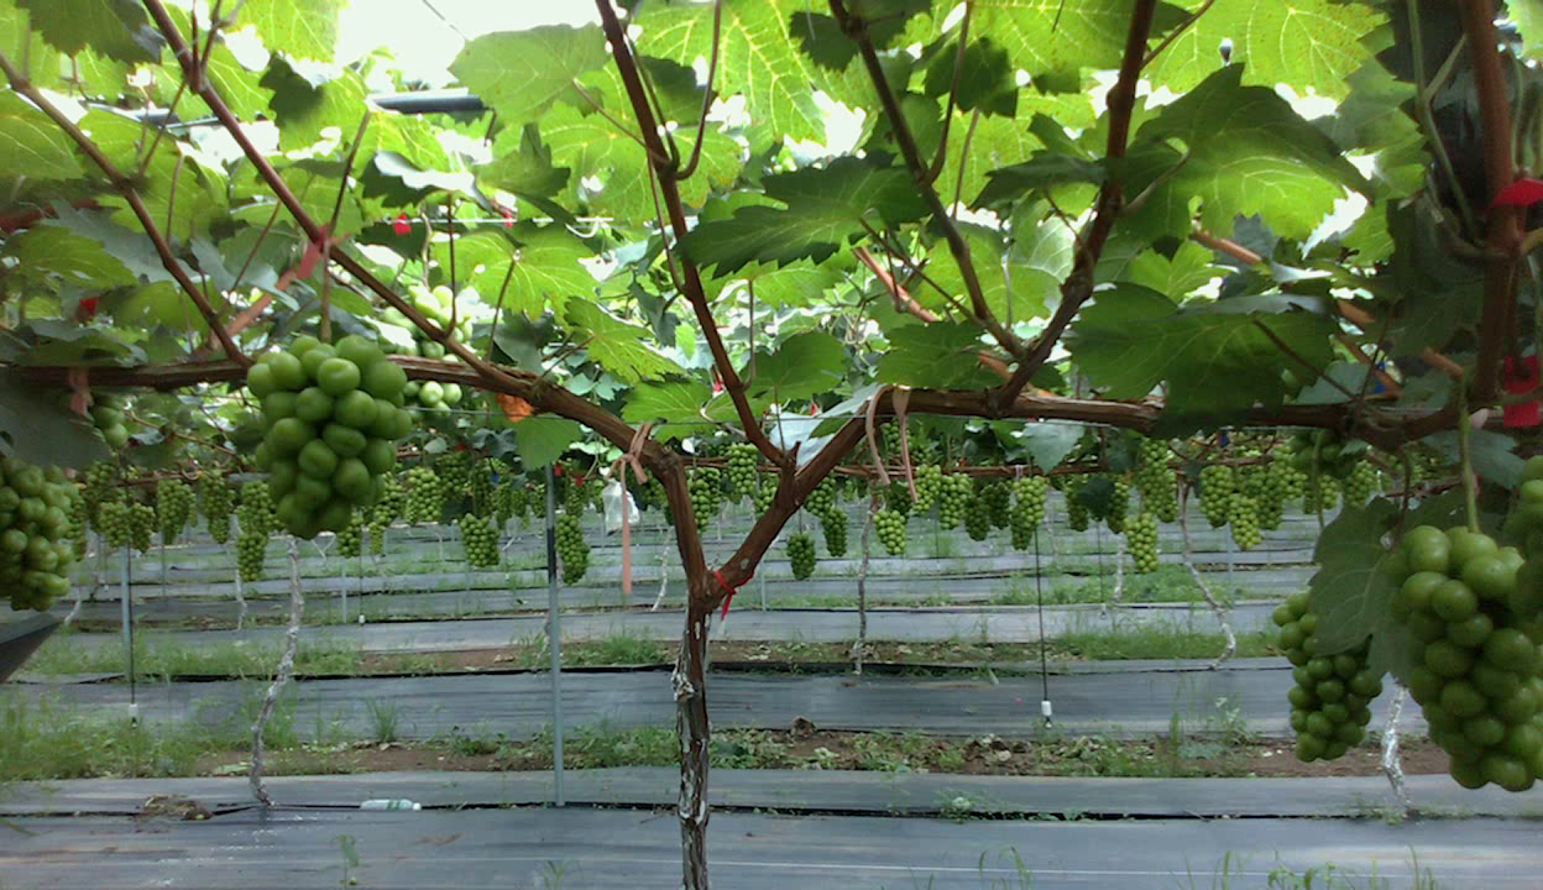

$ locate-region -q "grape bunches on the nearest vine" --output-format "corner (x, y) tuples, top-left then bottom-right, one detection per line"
(1271, 592), (1386, 763)
(1382, 525), (1542, 792)
(246, 335), (412, 540)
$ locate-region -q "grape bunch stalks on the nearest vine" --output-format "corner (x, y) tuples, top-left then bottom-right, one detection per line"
(1311, 429), (1328, 535)
(1456, 367), (1481, 533)
(319, 240), (331, 344)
